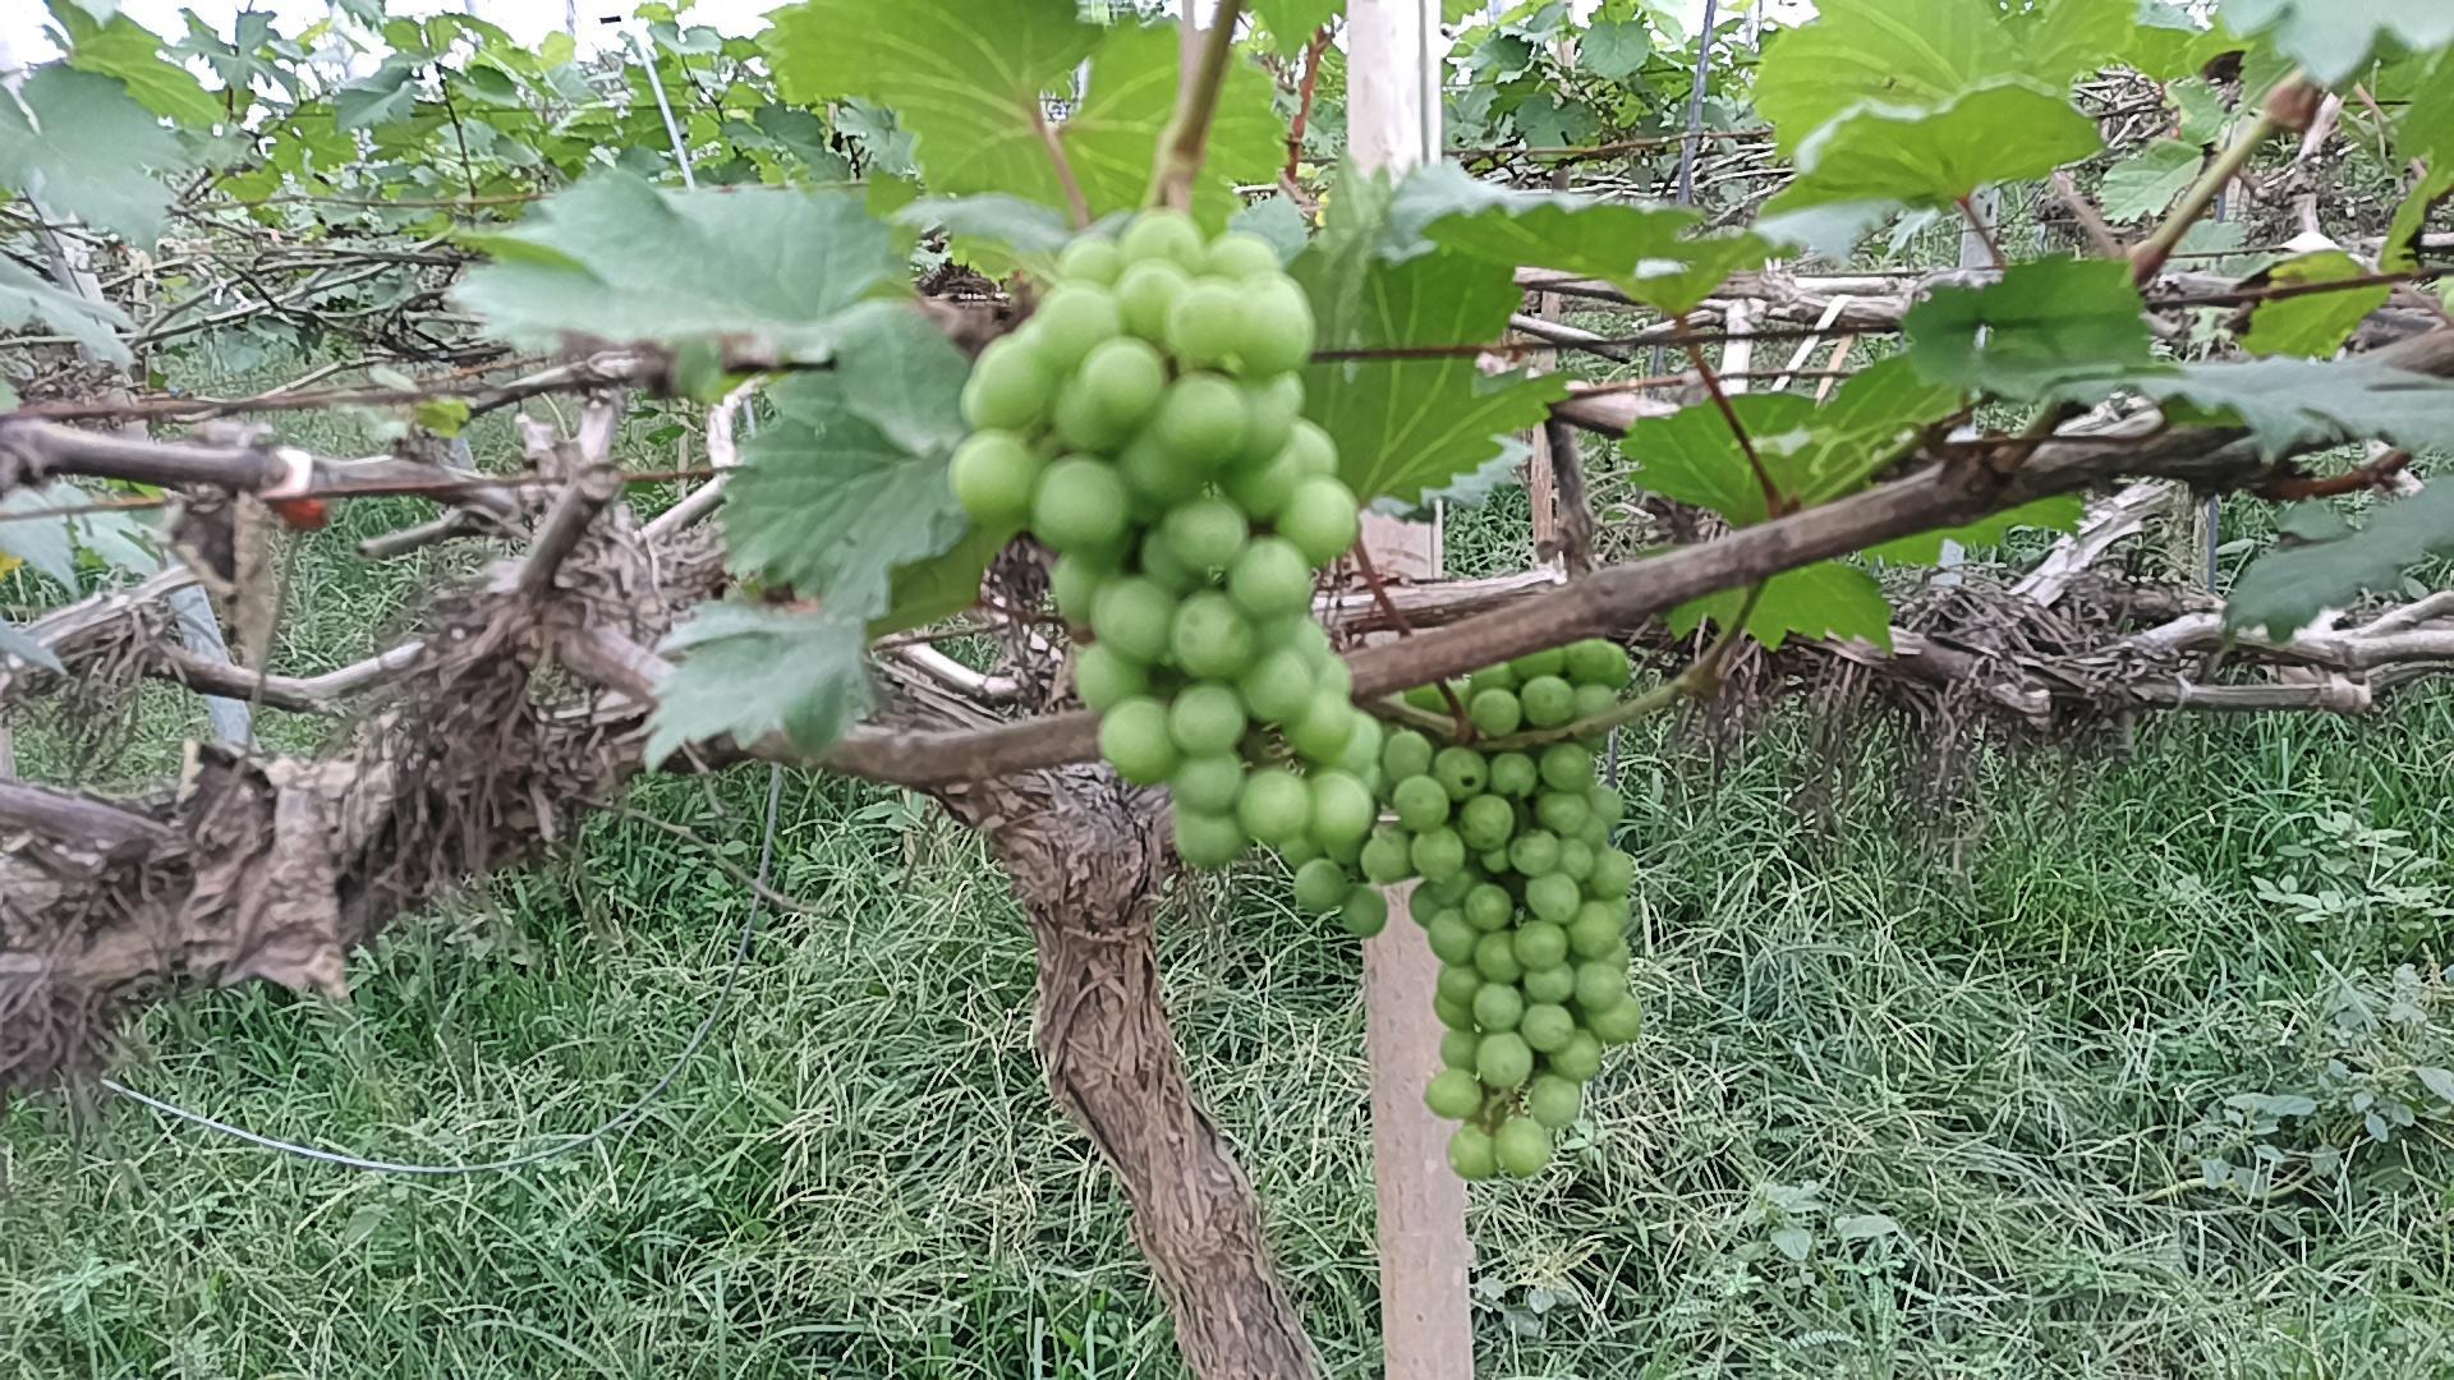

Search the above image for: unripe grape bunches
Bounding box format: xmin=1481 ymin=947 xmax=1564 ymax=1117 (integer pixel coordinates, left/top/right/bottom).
xmin=1366 ymin=641 xmax=1640 ymax=1179
xmin=955 ymin=212 xmax=1380 ymax=868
